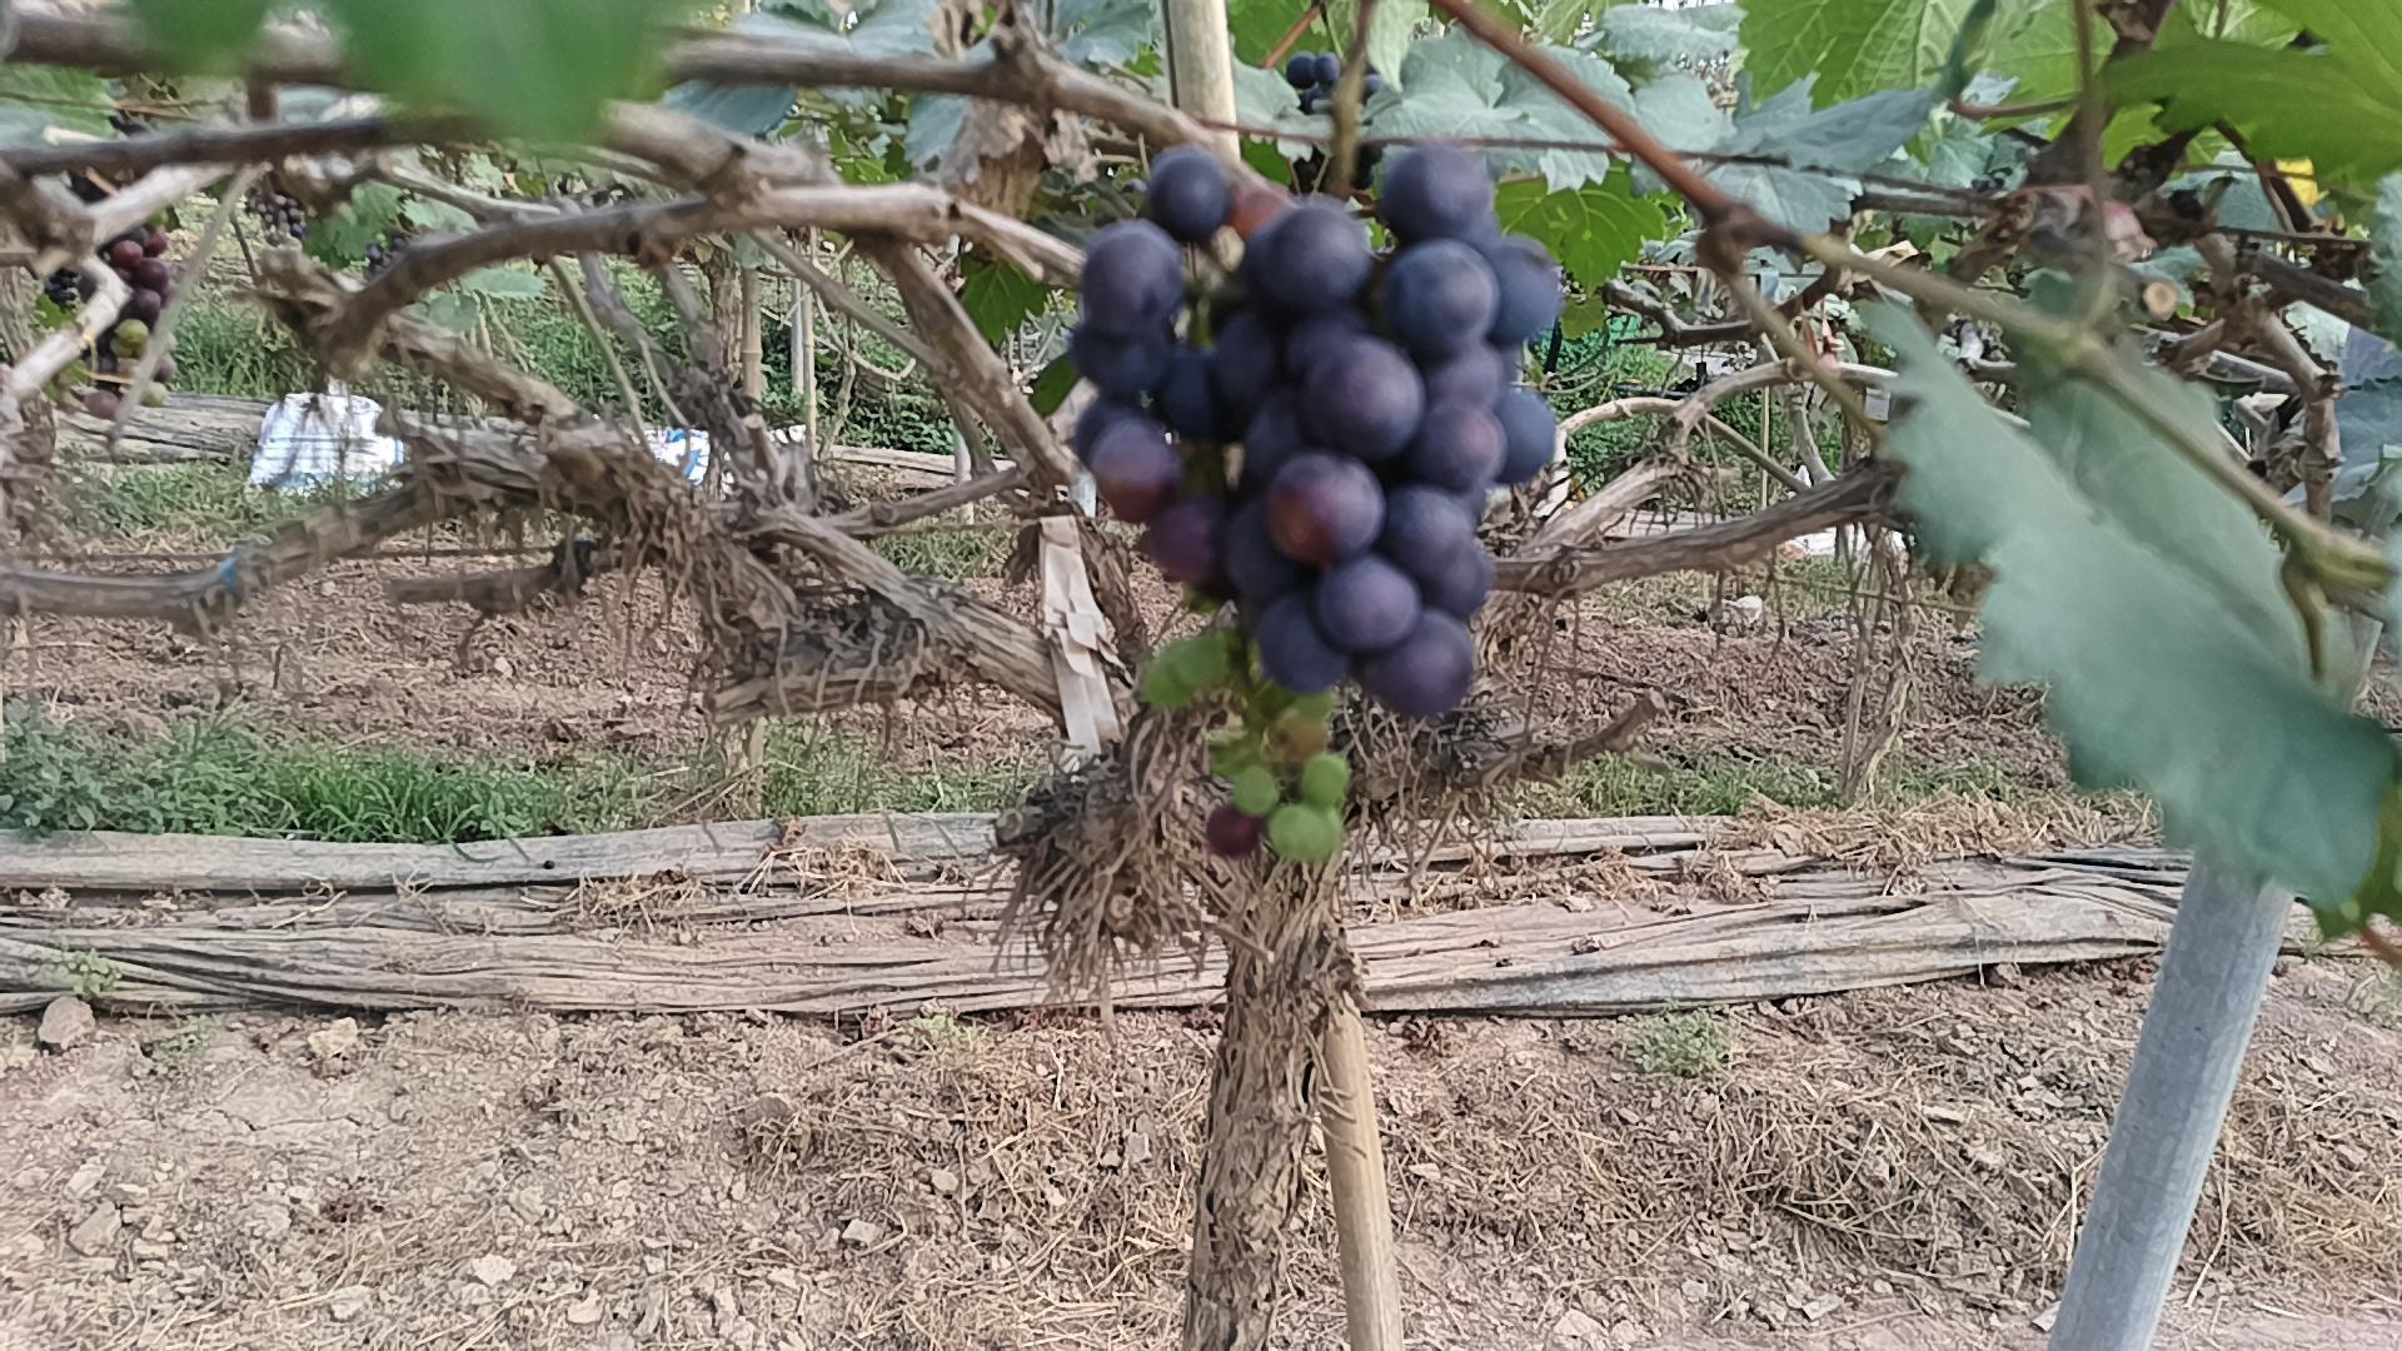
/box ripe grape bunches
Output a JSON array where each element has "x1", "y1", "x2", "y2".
[
  {"x1": 240, "y1": 173, "x2": 313, "y2": 250},
  {"x1": 1284, "y1": 50, "x2": 1390, "y2": 201},
  {"x1": 1071, "y1": 146, "x2": 1561, "y2": 716},
  {"x1": 40, "y1": 264, "x2": 79, "y2": 314}
]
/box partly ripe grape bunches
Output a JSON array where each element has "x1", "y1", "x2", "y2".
[
  {"x1": 70, "y1": 171, "x2": 179, "y2": 422},
  {"x1": 1143, "y1": 625, "x2": 1351, "y2": 859}
]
